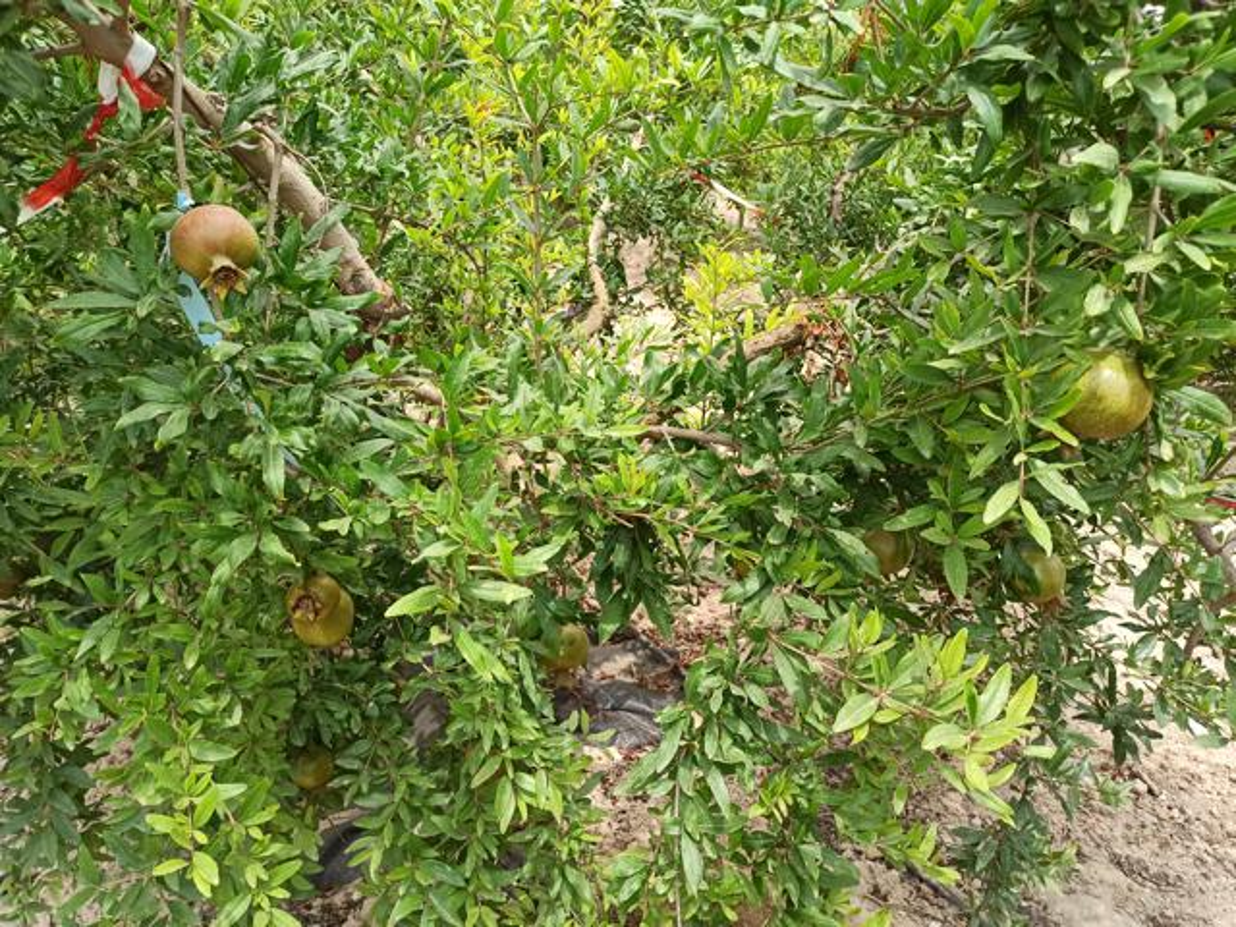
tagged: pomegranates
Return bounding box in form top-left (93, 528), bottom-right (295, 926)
top-left (168, 203), bottom-right (261, 303)
top-left (290, 587), bottom-right (355, 649)
top-left (288, 745), bottom-right (336, 792)
top-left (863, 533), bottom-right (904, 574)
top-left (1056, 351), bottom-right (1155, 440)
top-left (1018, 548), bottom-right (1068, 603)
top-left (537, 624), bottom-right (591, 674)
top-left (286, 568), bottom-right (342, 622)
